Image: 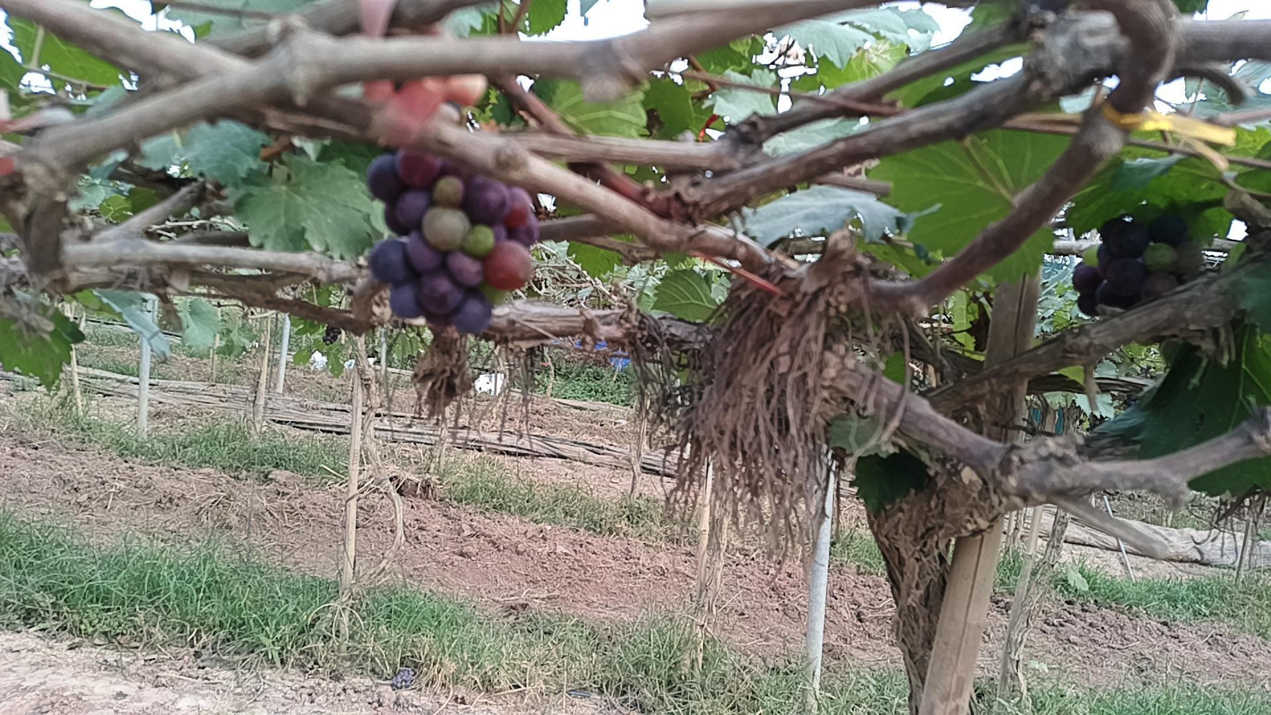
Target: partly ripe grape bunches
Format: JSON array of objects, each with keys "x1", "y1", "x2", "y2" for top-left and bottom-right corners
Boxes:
[
  {"x1": 1073, "y1": 214, "x2": 1203, "y2": 316},
  {"x1": 367, "y1": 151, "x2": 539, "y2": 334}
]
